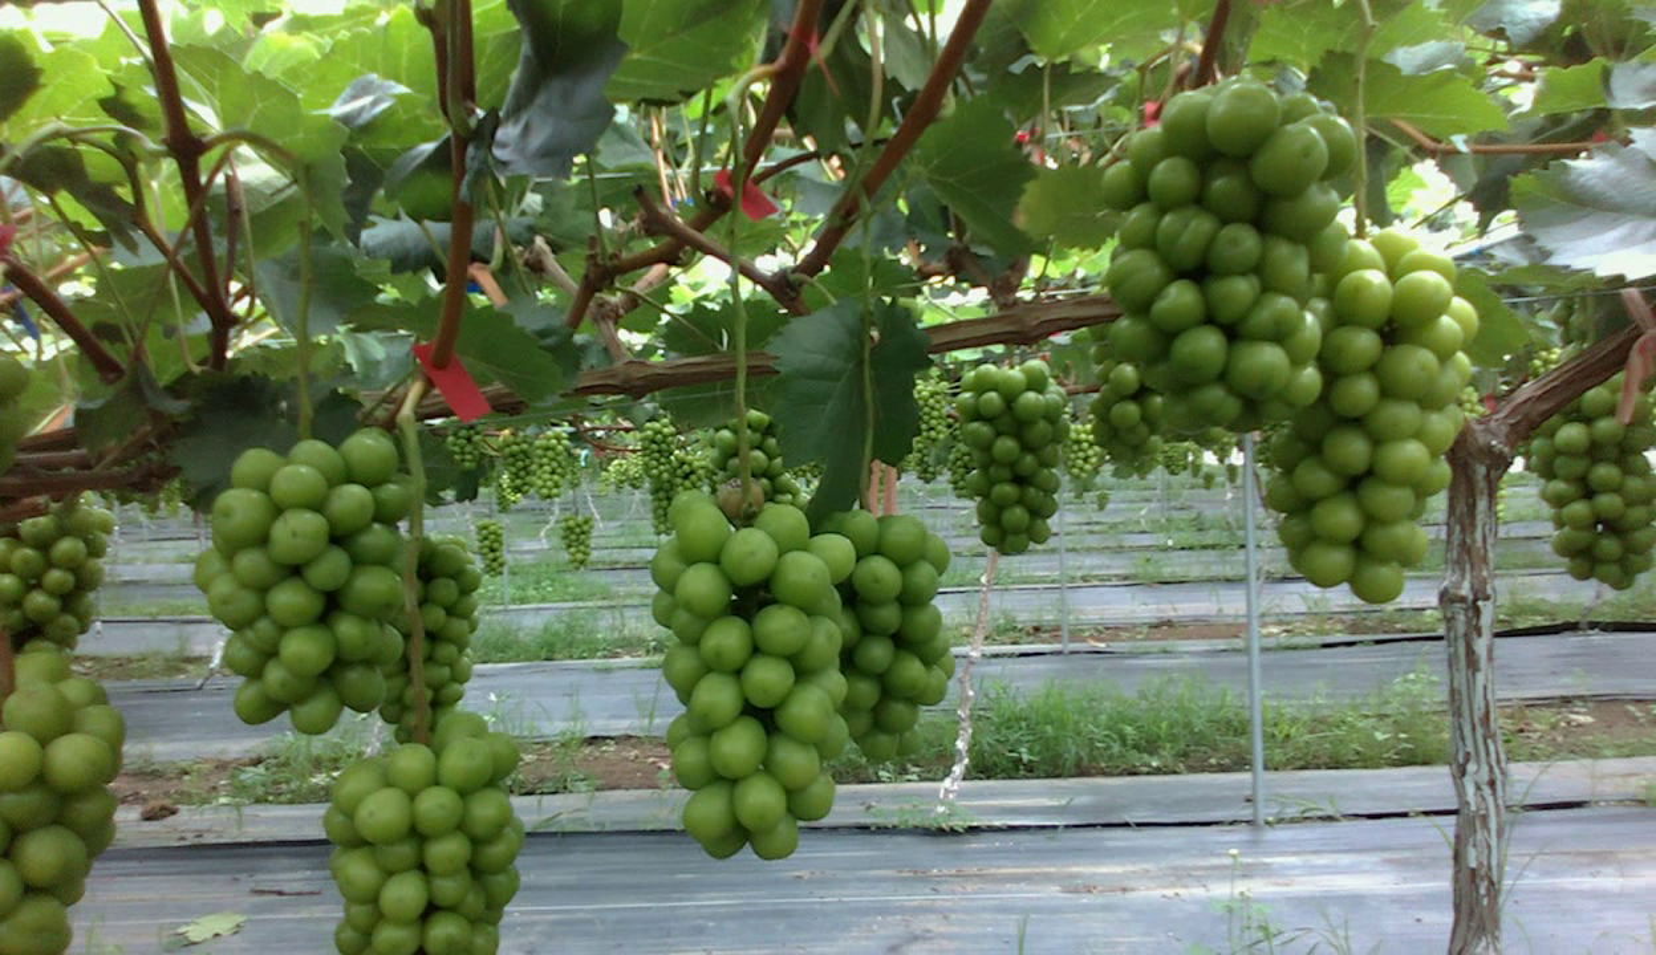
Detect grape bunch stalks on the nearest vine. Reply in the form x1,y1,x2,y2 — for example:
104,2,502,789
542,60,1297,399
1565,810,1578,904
1351,1,1379,239
203,126,314,442
397,373,430,745
723,64,778,528
1226,1,1242,76
857,183,874,511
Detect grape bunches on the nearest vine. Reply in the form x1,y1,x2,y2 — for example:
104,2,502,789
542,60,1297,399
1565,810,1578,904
817,509,955,763
194,427,414,736
1097,73,1359,436
649,479,857,862
0,649,127,954
321,710,524,954
1267,227,1480,605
